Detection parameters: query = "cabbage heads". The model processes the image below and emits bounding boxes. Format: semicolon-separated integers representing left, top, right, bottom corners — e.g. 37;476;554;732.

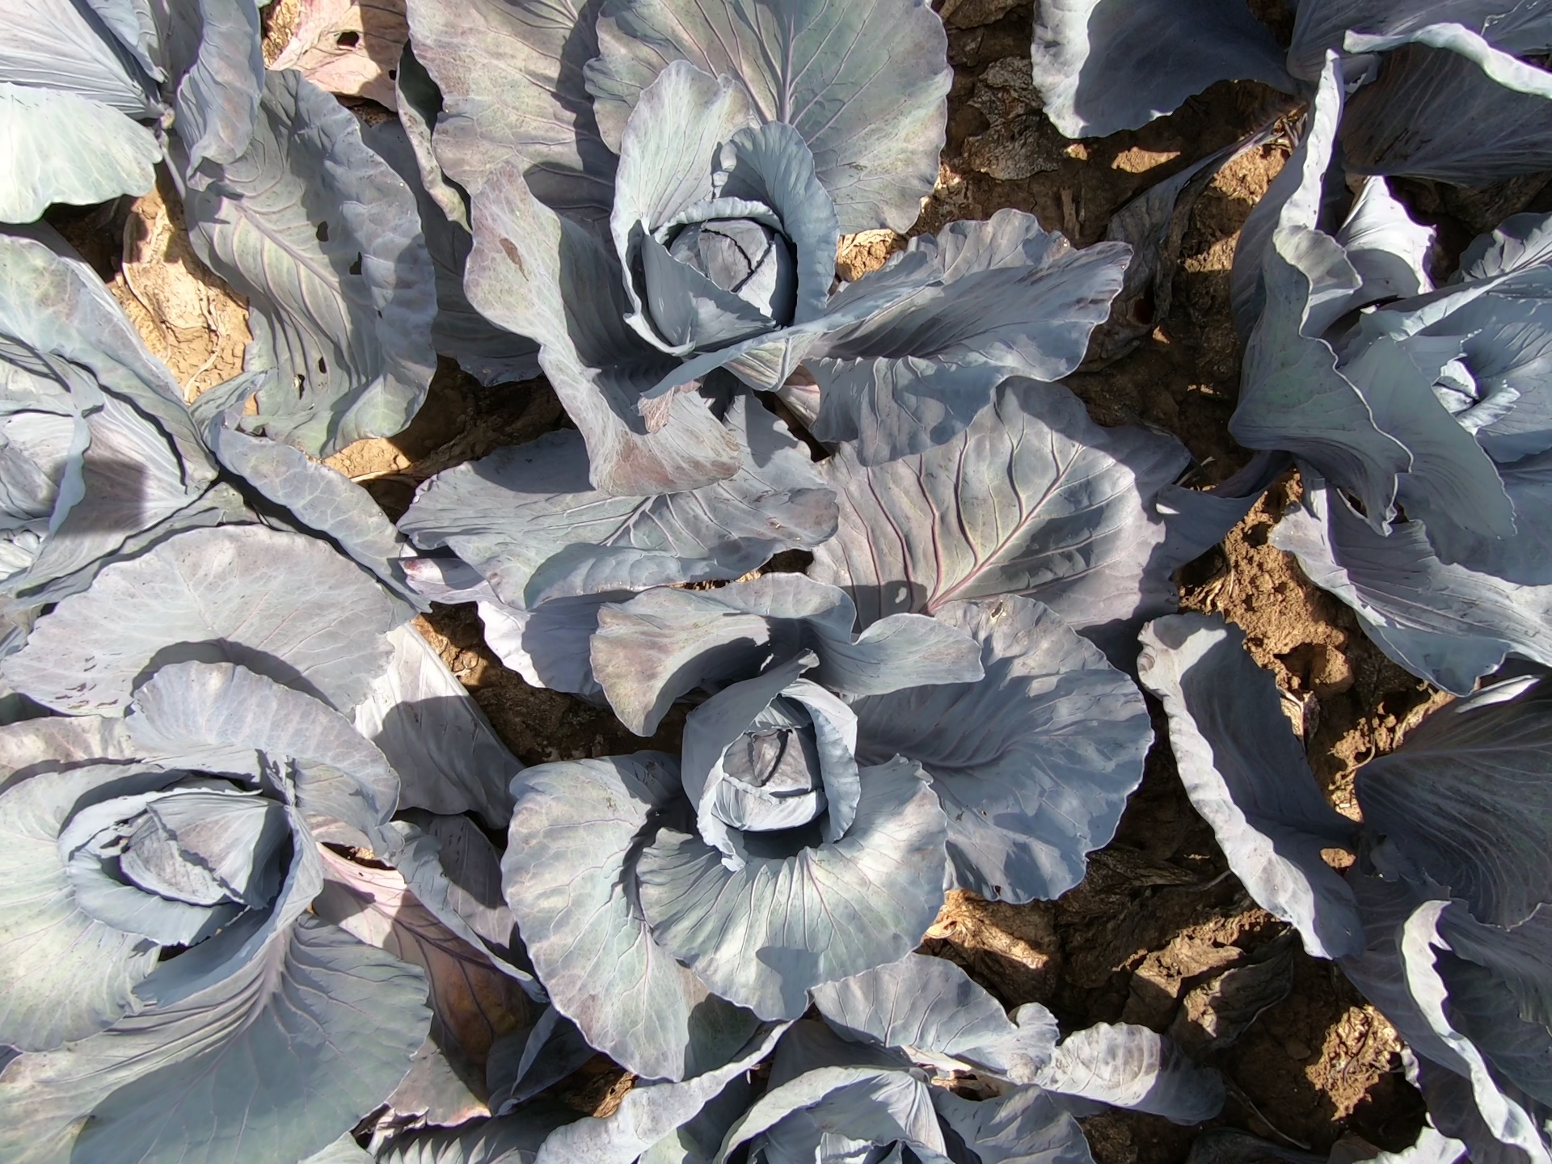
1354;341;1479;463
663;209;793;352
690;687;852;831
0;382;171;576
120;799;276;911
761;1057;937;1162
